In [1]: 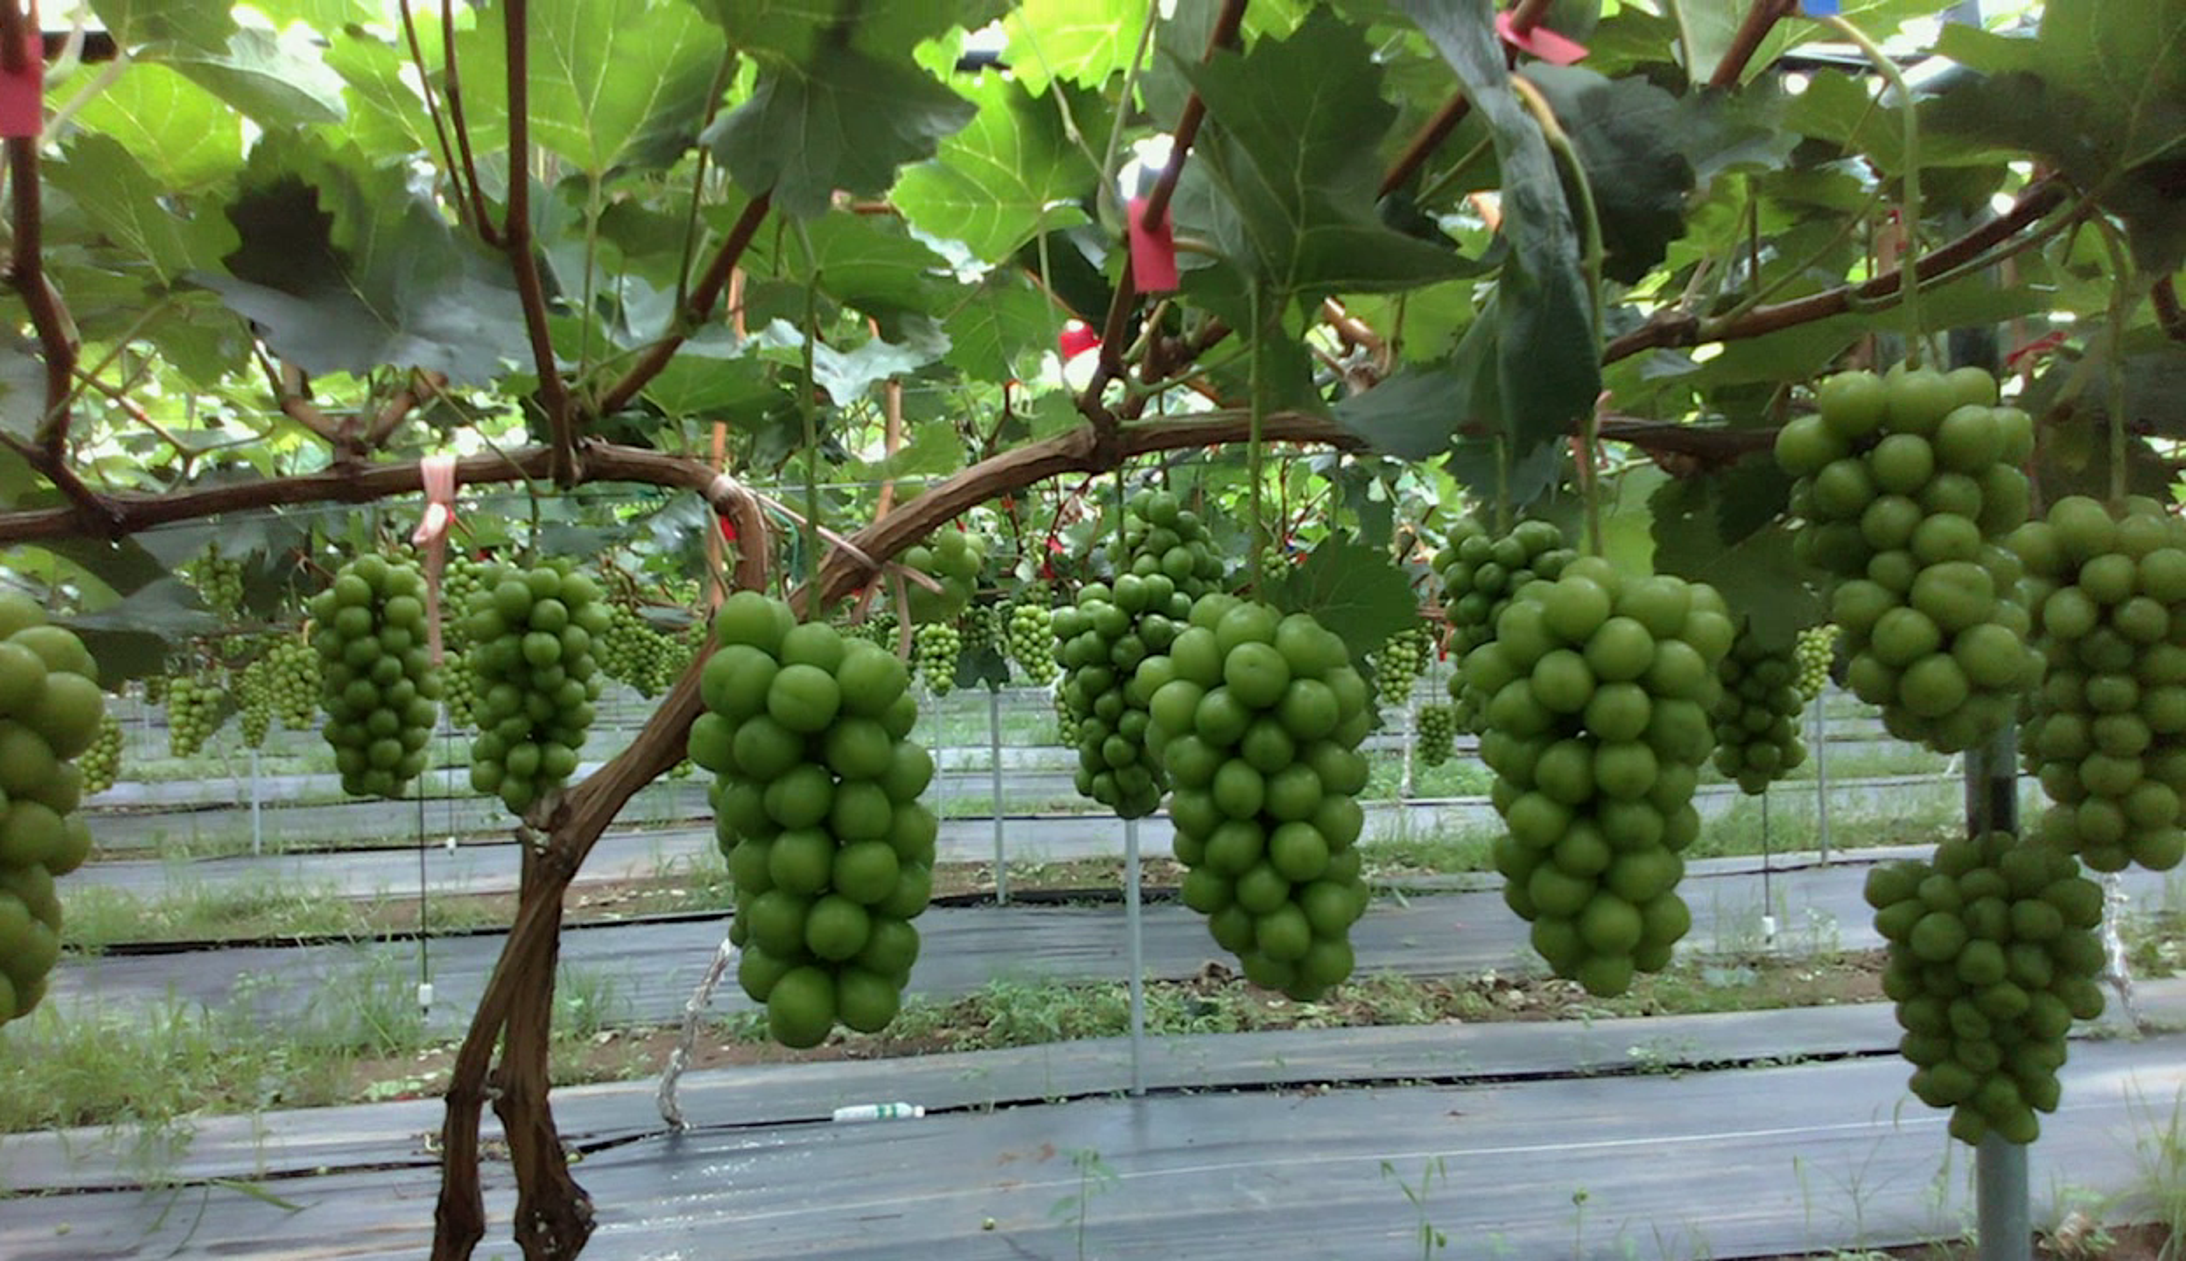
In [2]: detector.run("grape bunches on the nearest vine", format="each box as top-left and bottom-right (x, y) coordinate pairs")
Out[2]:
(1773, 361), (2035, 755)
(1463, 555), (1734, 998)
(2004, 496), (2184, 872)
(2, 580), (98, 1030)
(688, 590), (937, 1049)
(1862, 832), (2107, 1145)
(1135, 594), (1372, 1004)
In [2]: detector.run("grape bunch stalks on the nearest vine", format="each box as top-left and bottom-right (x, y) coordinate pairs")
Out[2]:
(799, 291), (822, 622)
(1818, 14), (1925, 371)
(1582, 420), (1603, 555)
(1978, 746), (1993, 865)
(1174, 236), (1266, 608)
(2088, 210), (2132, 525)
